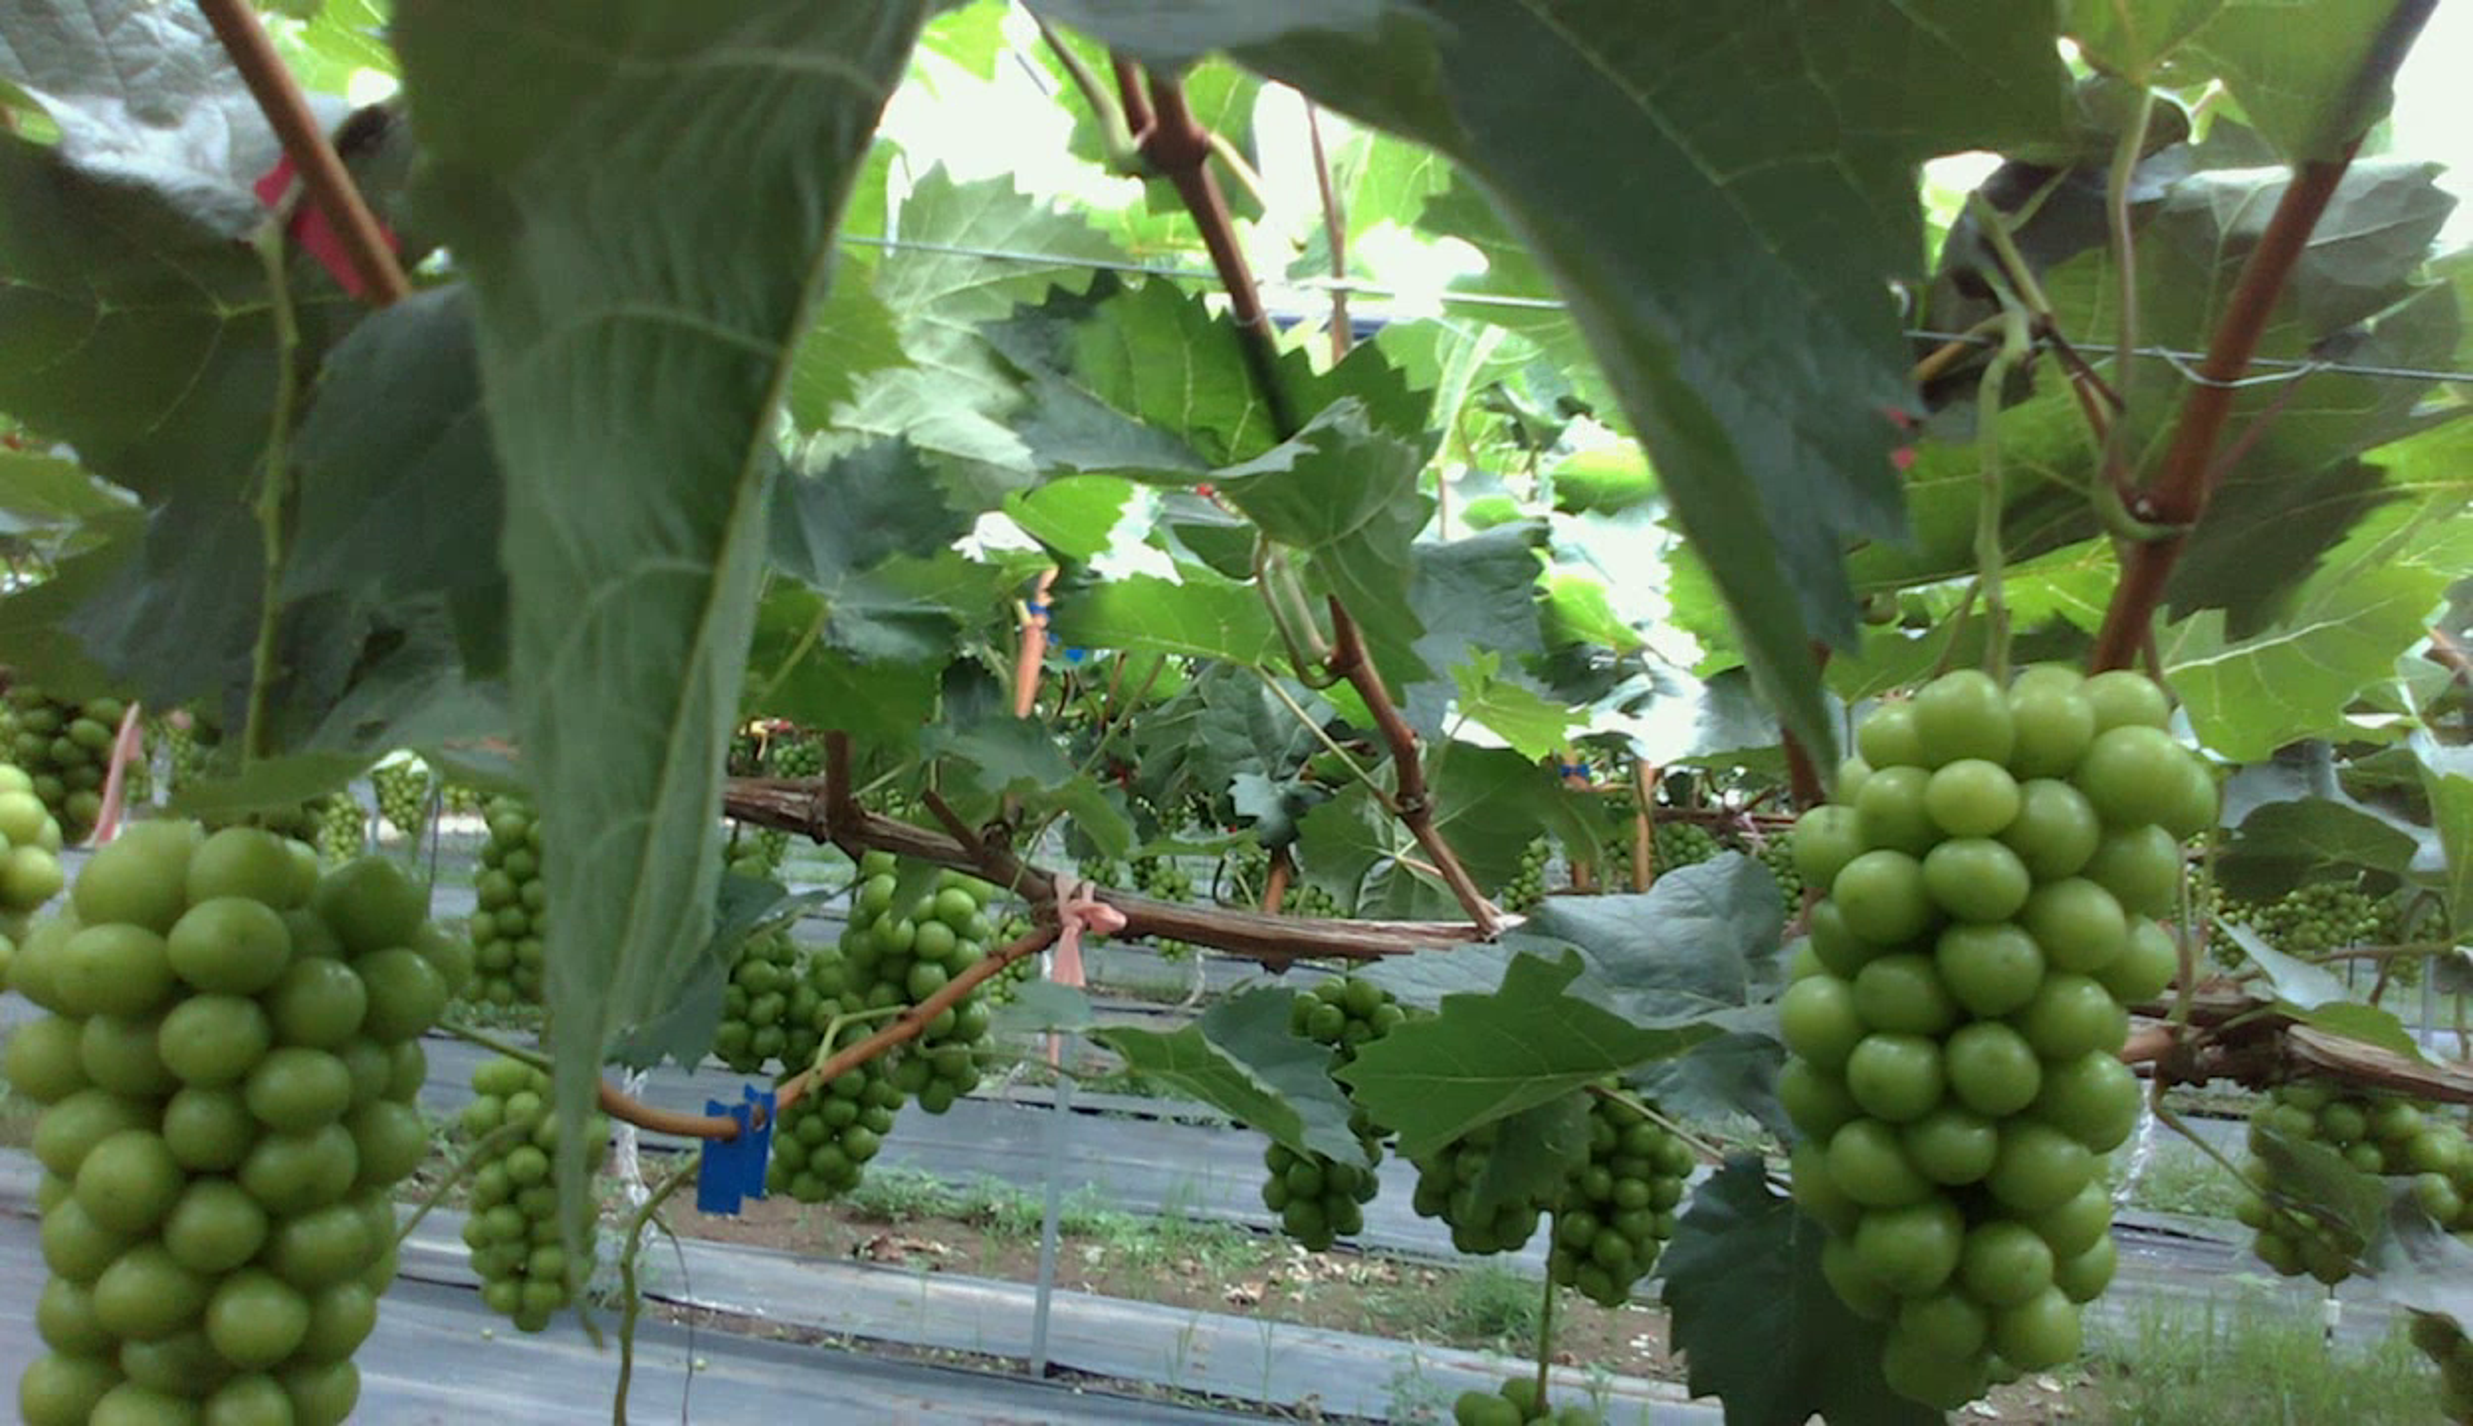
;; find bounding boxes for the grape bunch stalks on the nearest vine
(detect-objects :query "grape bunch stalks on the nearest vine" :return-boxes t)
[1964,254,2033,689]
[232,182,299,832]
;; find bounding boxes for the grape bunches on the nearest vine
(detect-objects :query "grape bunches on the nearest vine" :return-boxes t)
[1777,663,2217,1414]
[2,820,478,1422]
